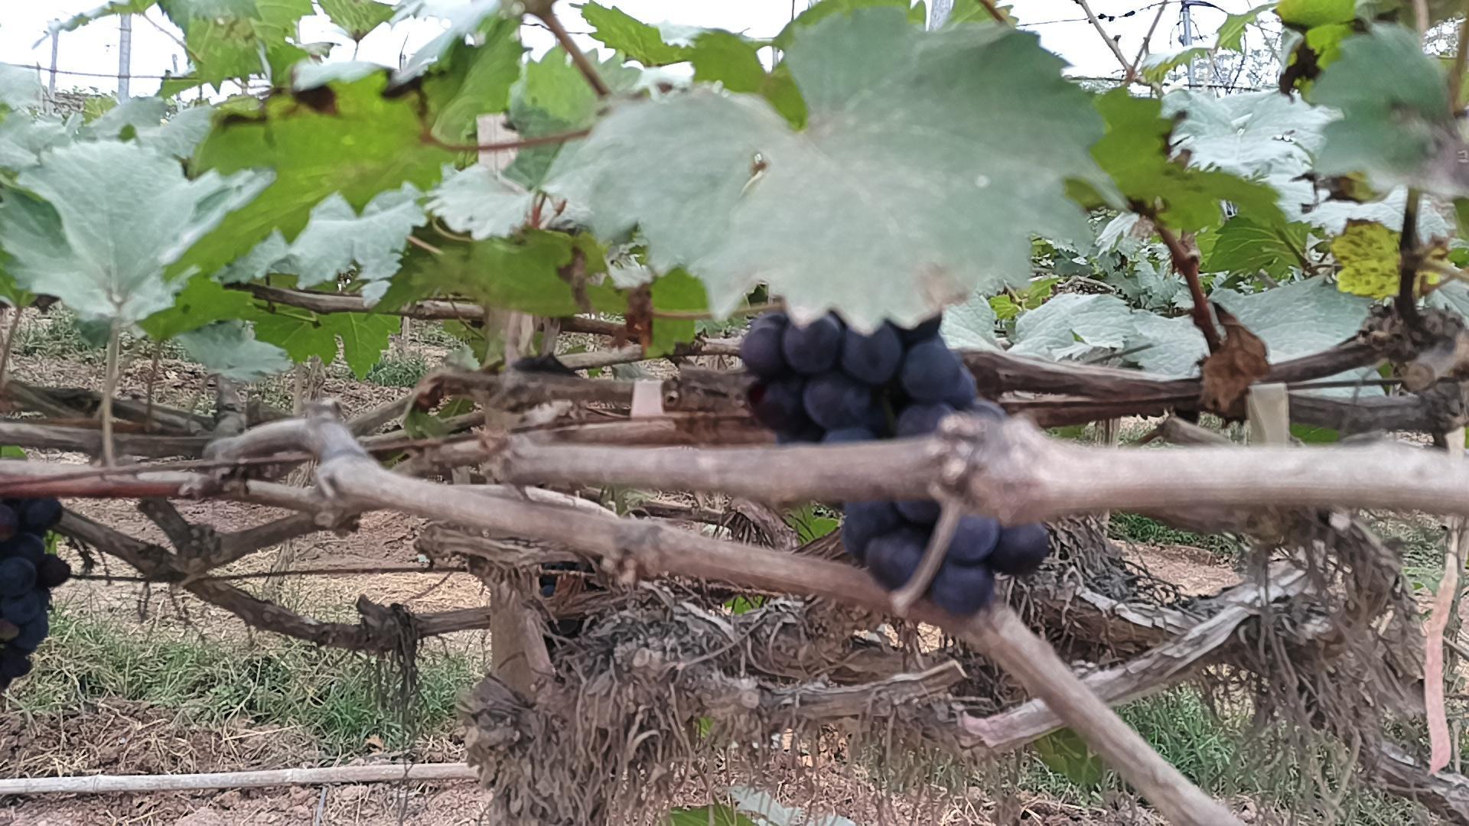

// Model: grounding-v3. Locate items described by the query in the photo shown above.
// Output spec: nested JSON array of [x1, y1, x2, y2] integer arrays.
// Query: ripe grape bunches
[[0, 498, 71, 692], [741, 312, 1048, 616]]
